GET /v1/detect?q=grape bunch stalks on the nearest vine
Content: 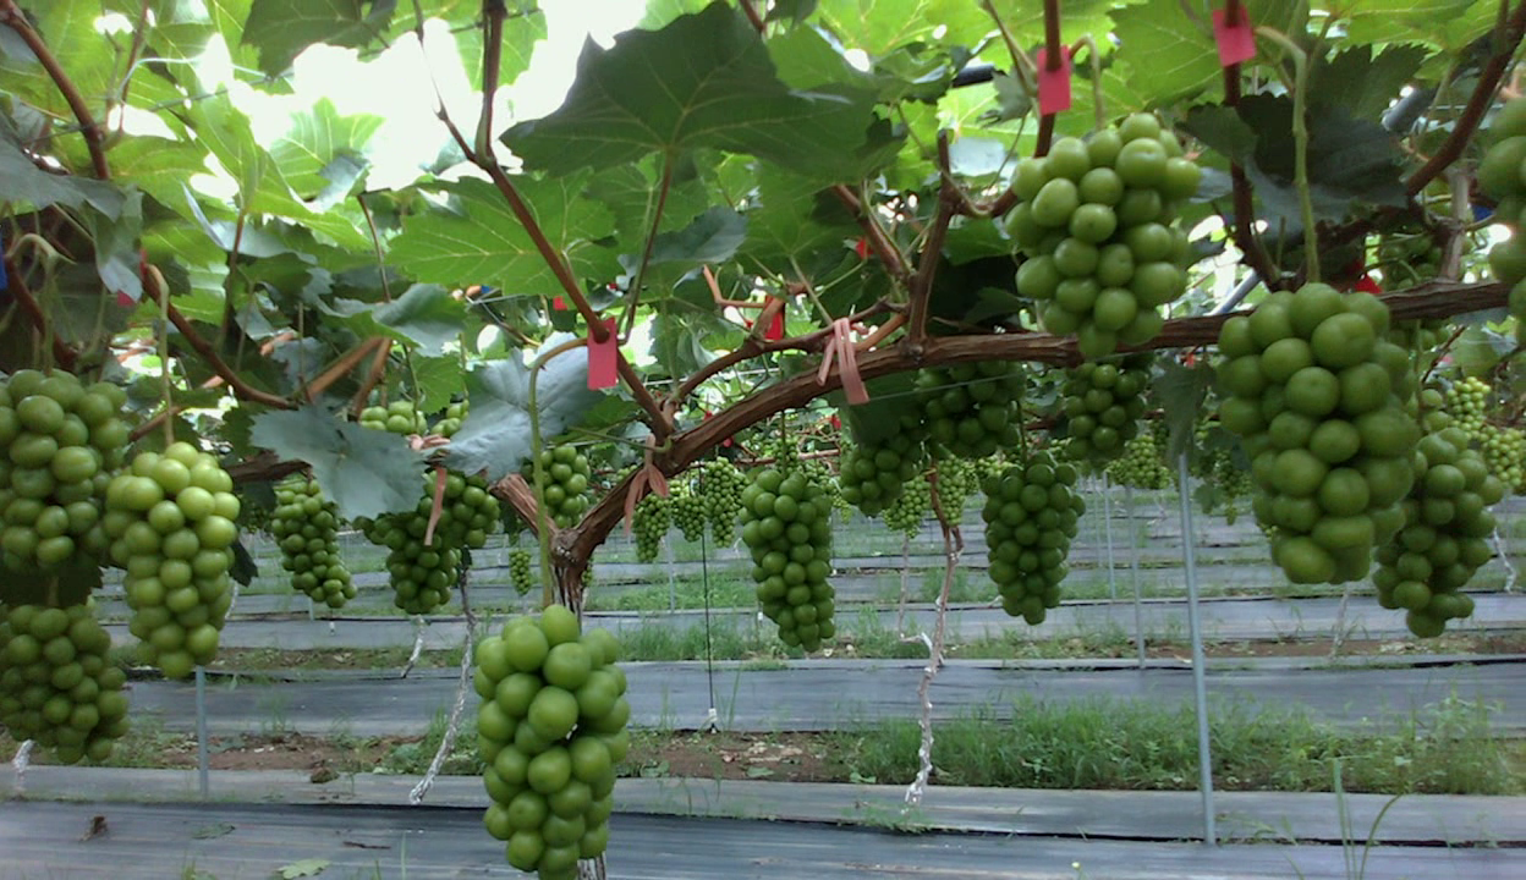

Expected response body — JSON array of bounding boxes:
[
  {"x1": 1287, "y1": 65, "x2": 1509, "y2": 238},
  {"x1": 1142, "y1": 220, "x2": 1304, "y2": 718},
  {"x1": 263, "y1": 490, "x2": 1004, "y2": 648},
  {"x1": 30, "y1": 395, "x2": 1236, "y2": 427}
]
[
  {"x1": 143, "y1": 263, "x2": 176, "y2": 447},
  {"x1": 1069, "y1": 31, "x2": 1107, "y2": 133},
  {"x1": 527, "y1": 337, "x2": 588, "y2": 611},
  {"x1": 1253, "y1": 26, "x2": 1321, "y2": 281},
  {"x1": 45, "y1": 577, "x2": 59, "y2": 607},
  {"x1": 13, "y1": 235, "x2": 59, "y2": 378}
]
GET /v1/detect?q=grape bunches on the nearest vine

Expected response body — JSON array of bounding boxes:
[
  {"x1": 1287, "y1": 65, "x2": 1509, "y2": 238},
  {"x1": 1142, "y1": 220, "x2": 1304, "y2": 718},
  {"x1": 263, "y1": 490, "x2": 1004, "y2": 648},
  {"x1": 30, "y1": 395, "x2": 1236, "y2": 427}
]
[
  {"x1": 1, "y1": 603, "x2": 133, "y2": 766},
  {"x1": 1003, "y1": 112, "x2": 1202, "y2": 363},
  {"x1": 472, "y1": 604, "x2": 630, "y2": 879},
  {"x1": 1217, "y1": 282, "x2": 1422, "y2": 585},
  {"x1": 104, "y1": 442, "x2": 241, "y2": 680},
  {"x1": 1, "y1": 368, "x2": 138, "y2": 577}
]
